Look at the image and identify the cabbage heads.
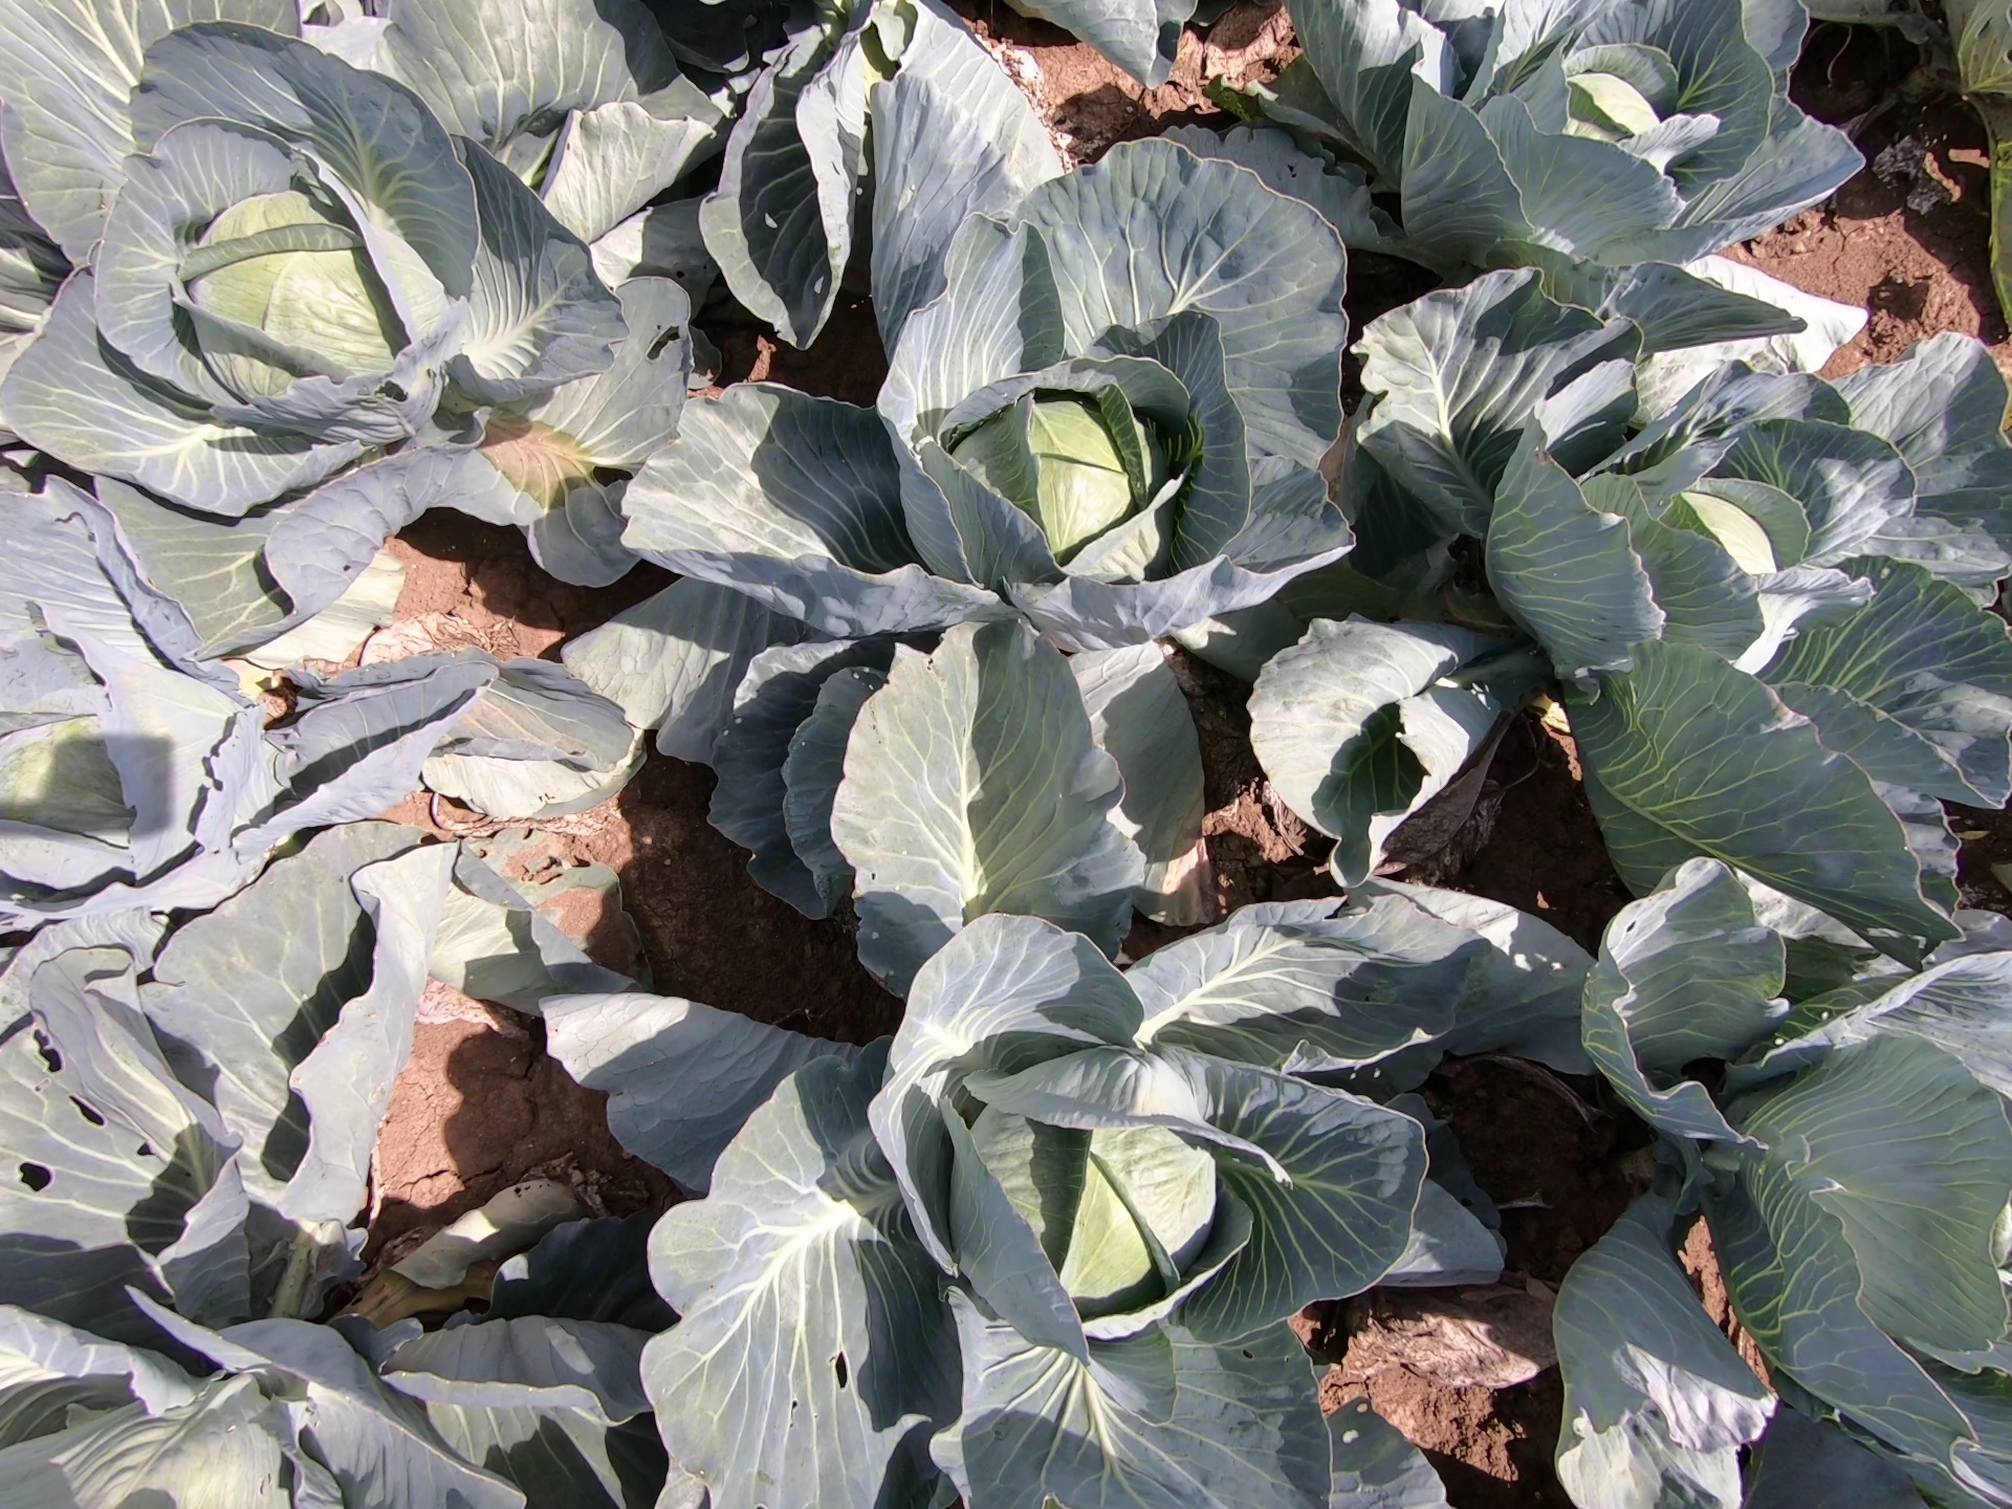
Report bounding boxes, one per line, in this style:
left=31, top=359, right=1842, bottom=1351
left=1522, top=66, right=1670, bottom=224
left=1603, top=483, right=1786, bottom=680
left=955, top=1053, right=1217, bottom=1318
left=1, top=677, right=241, bottom=893
left=189, top=189, right=441, bottom=429
left=1745, top=1090, right=2009, bottom=1337
left=946, top=393, right=1178, bottom=622
left=14, top=1388, right=284, bottom=1508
